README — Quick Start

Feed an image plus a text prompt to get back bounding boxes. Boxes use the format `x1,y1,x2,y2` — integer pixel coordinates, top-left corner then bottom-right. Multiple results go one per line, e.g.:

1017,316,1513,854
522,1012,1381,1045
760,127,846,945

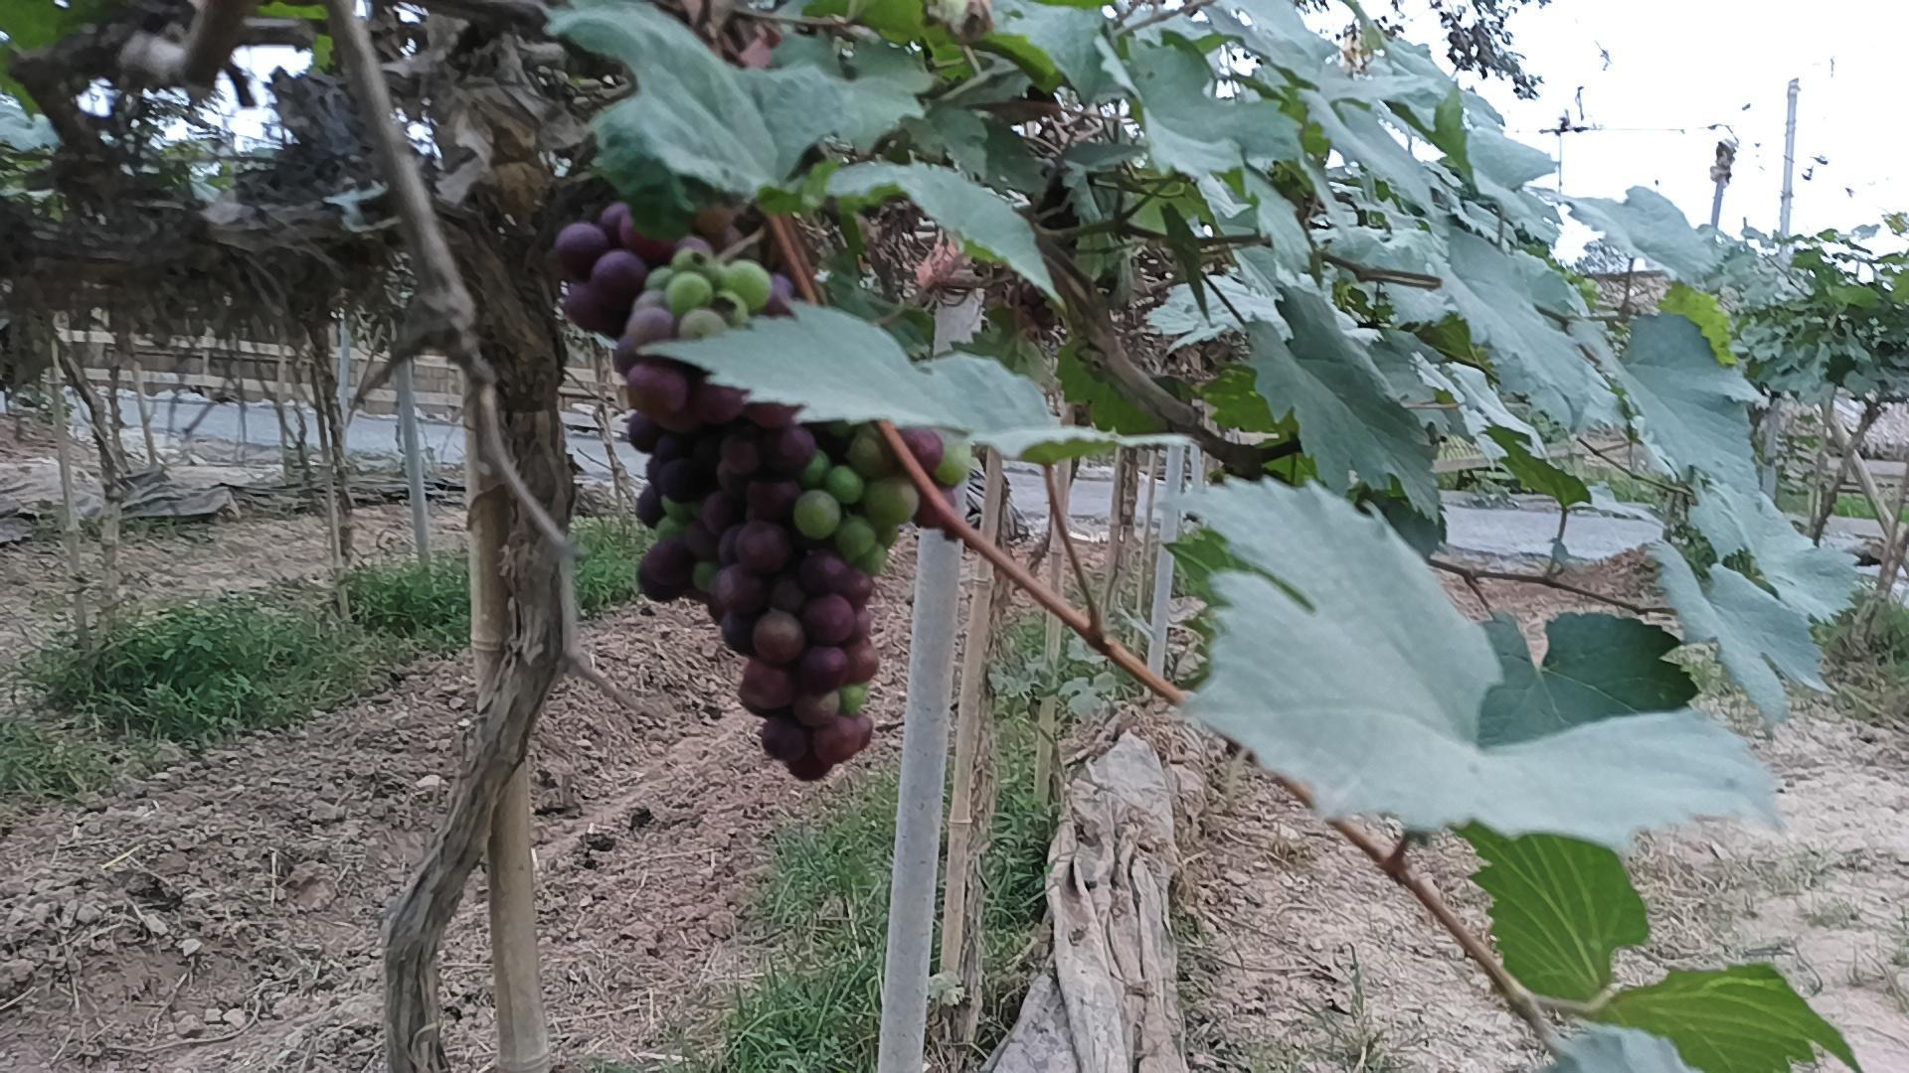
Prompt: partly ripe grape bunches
896,427,975,488
553,203,923,780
